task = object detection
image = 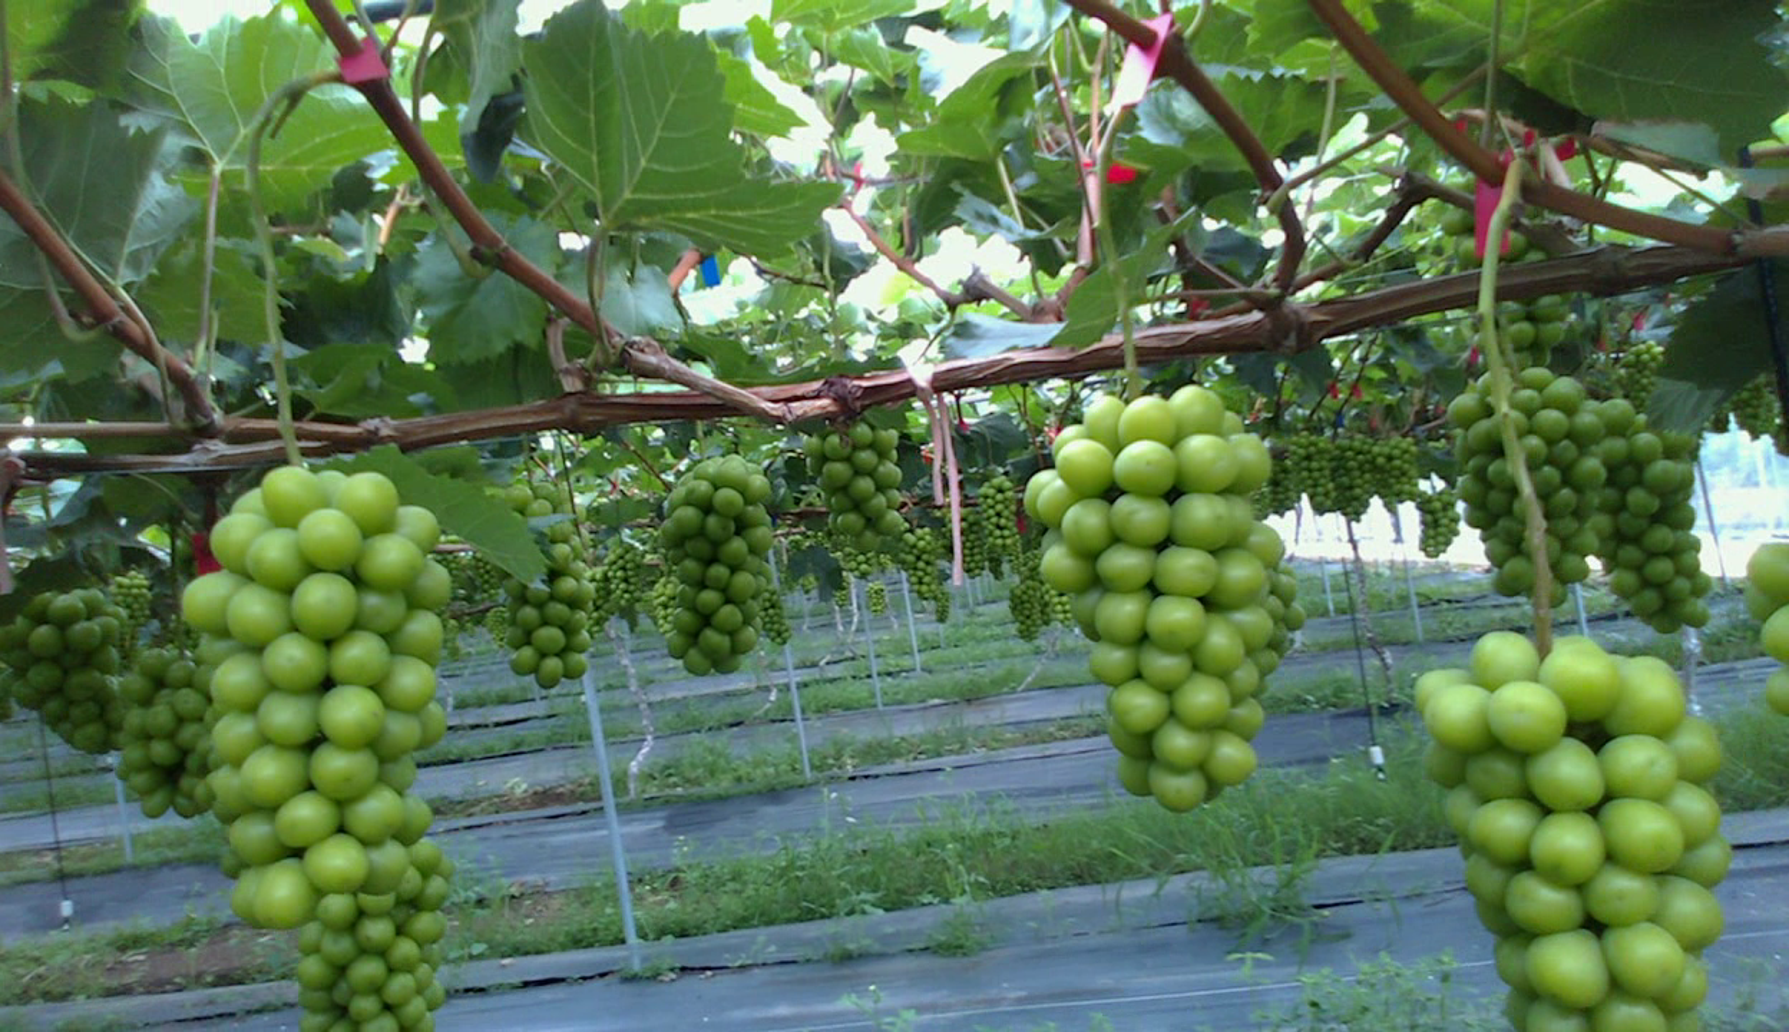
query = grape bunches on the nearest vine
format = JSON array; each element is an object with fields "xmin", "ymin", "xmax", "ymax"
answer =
[
  {"xmin": 183, "ymin": 464, "xmax": 450, "ymax": 930},
  {"xmin": 1024, "ymin": 386, "xmax": 1282, "ymax": 811},
  {"xmin": 1412, "ymin": 629, "xmax": 1732, "ymax": 1031}
]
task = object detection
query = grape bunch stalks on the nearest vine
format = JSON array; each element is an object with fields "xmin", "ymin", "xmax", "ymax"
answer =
[
  {"xmin": 1094, "ymin": 109, "xmax": 1141, "ymax": 404},
  {"xmin": 244, "ymin": 67, "xmax": 341, "ymax": 467},
  {"xmin": 1478, "ymin": 156, "xmax": 1551, "ymax": 666}
]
